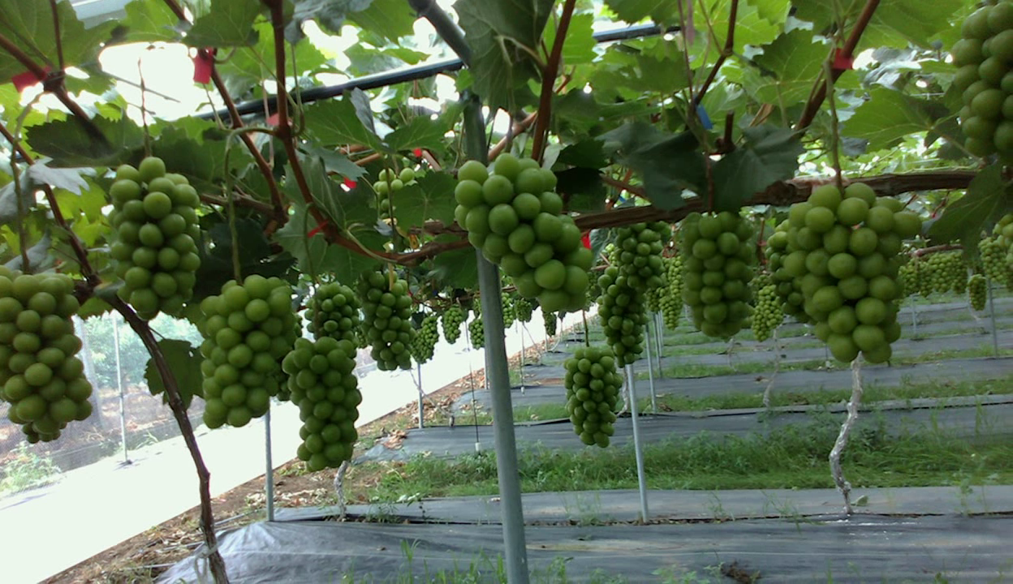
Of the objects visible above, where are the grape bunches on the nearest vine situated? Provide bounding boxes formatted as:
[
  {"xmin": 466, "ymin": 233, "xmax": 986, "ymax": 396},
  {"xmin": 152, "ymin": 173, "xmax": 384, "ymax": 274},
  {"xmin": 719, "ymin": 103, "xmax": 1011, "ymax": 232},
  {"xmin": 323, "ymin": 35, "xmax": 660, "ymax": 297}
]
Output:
[
  {"xmin": 0, "ymin": 265, "xmax": 93, "ymax": 444},
  {"xmin": 283, "ymin": 336, "xmax": 362, "ymax": 471},
  {"xmin": 454, "ymin": 153, "xmax": 593, "ymax": 313},
  {"xmin": 681, "ymin": 212, "xmax": 755, "ymax": 339},
  {"xmin": 783, "ymin": 182, "xmax": 924, "ymax": 363},
  {"xmin": 106, "ymin": 157, "xmax": 201, "ymax": 322},
  {"xmin": 200, "ymin": 276, "xmax": 297, "ymax": 430}
]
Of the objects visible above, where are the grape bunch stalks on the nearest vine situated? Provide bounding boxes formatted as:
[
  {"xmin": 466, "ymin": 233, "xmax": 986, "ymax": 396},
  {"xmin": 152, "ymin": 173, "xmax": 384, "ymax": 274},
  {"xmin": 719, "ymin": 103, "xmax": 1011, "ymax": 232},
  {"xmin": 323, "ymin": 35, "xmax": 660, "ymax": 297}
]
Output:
[
  {"xmin": 137, "ymin": 58, "xmax": 152, "ymax": 156},
  {"xmin": 495, "ymin": 35, "xmax": 540, "ymax": 152},
  {"xmin": 822, "ymin": 45, "xmax": 846, "ymax": 200},
  {"xmin": 222, "ymin": 127, "xmax": 273, "ymax": 286},
  {"xmin": 703, "ymin": 130, "xmax": 716, "ymax": 216},
  {"xmin": 8, "ymin": 92, "xmax": 47, "ymax": 273},
  {"xmin": 302, "ymin": 203, "xmax": 328, "ymax": 337}
]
